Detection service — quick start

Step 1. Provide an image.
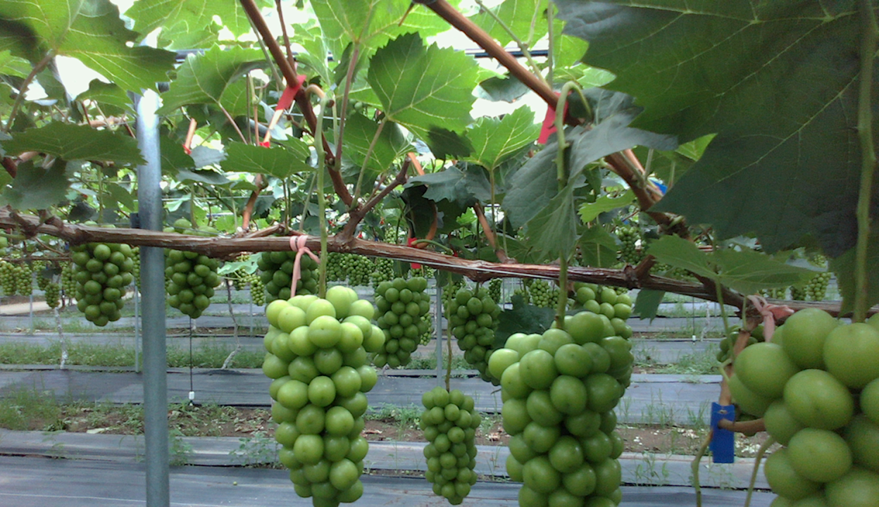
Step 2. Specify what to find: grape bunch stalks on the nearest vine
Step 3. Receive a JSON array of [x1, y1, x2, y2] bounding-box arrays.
[[304, 84, 327, 299], [854, 1, 875, 323], [551, 81, 592, 330]]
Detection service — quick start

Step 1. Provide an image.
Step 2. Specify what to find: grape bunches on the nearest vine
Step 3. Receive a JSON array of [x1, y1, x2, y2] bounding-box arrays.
[[726, 308, 878, 506], [488, 312, 632, 506], [263, 285, 385, 506]]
